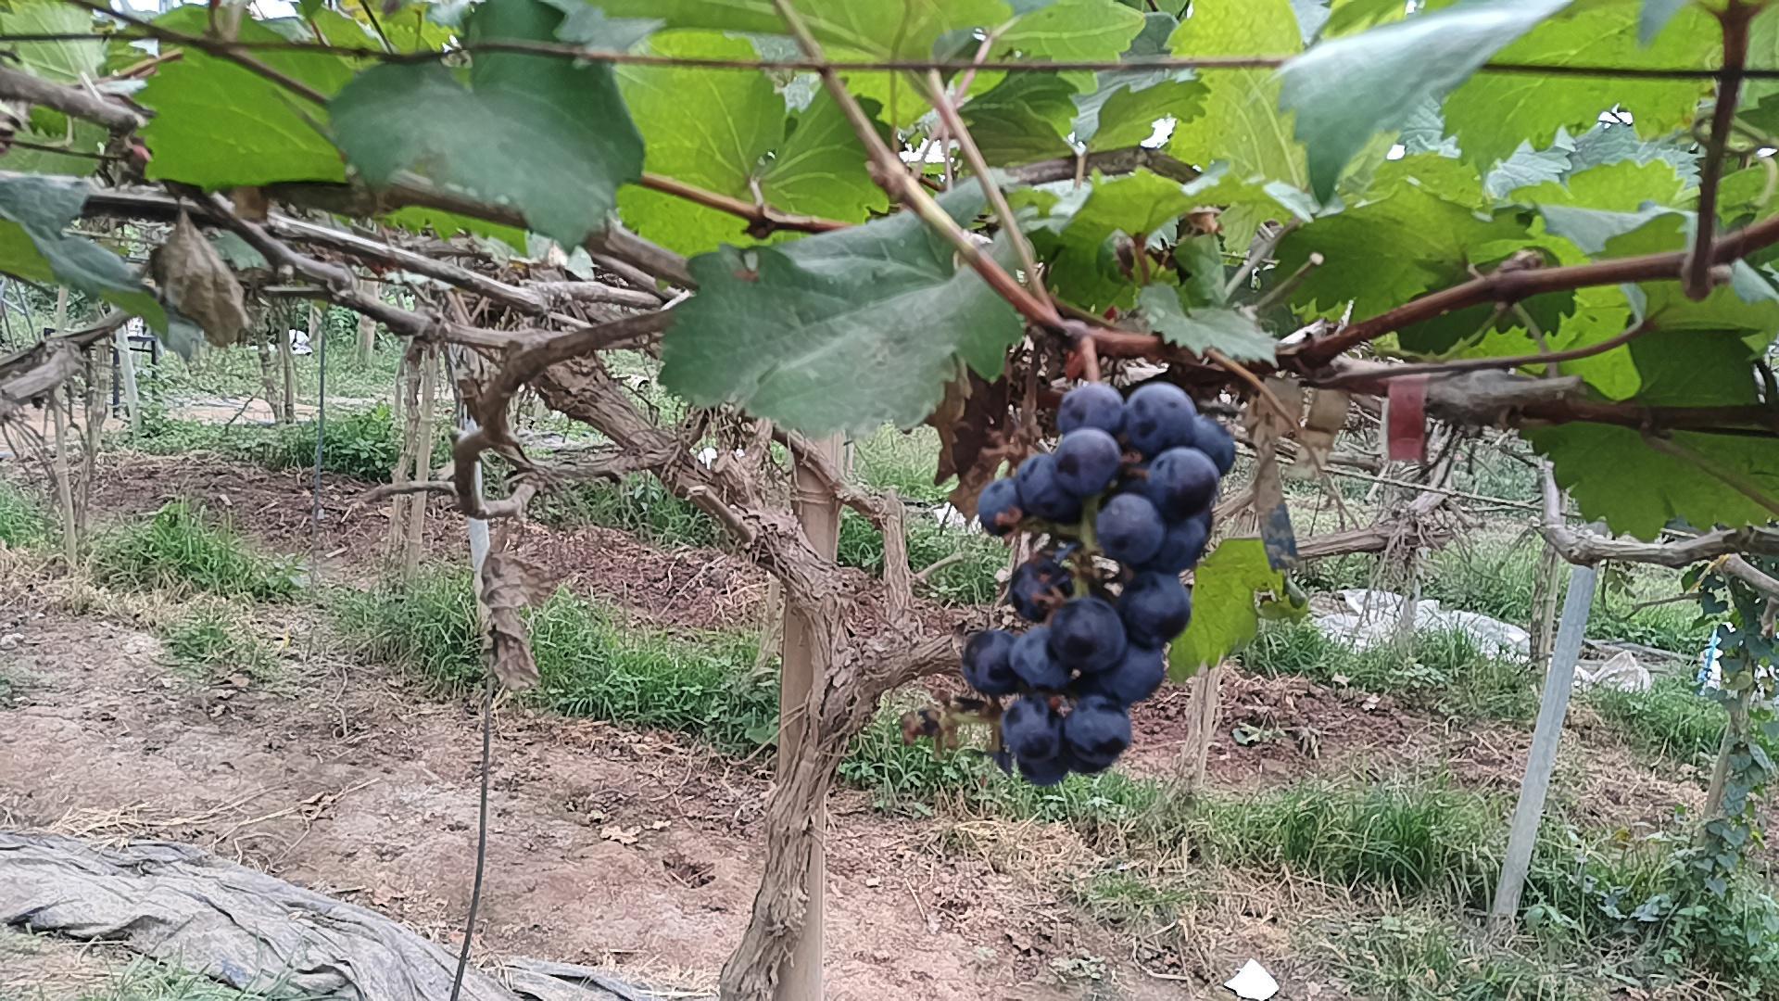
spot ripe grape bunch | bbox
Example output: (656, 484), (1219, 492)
(962, 383), (1233, 785)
